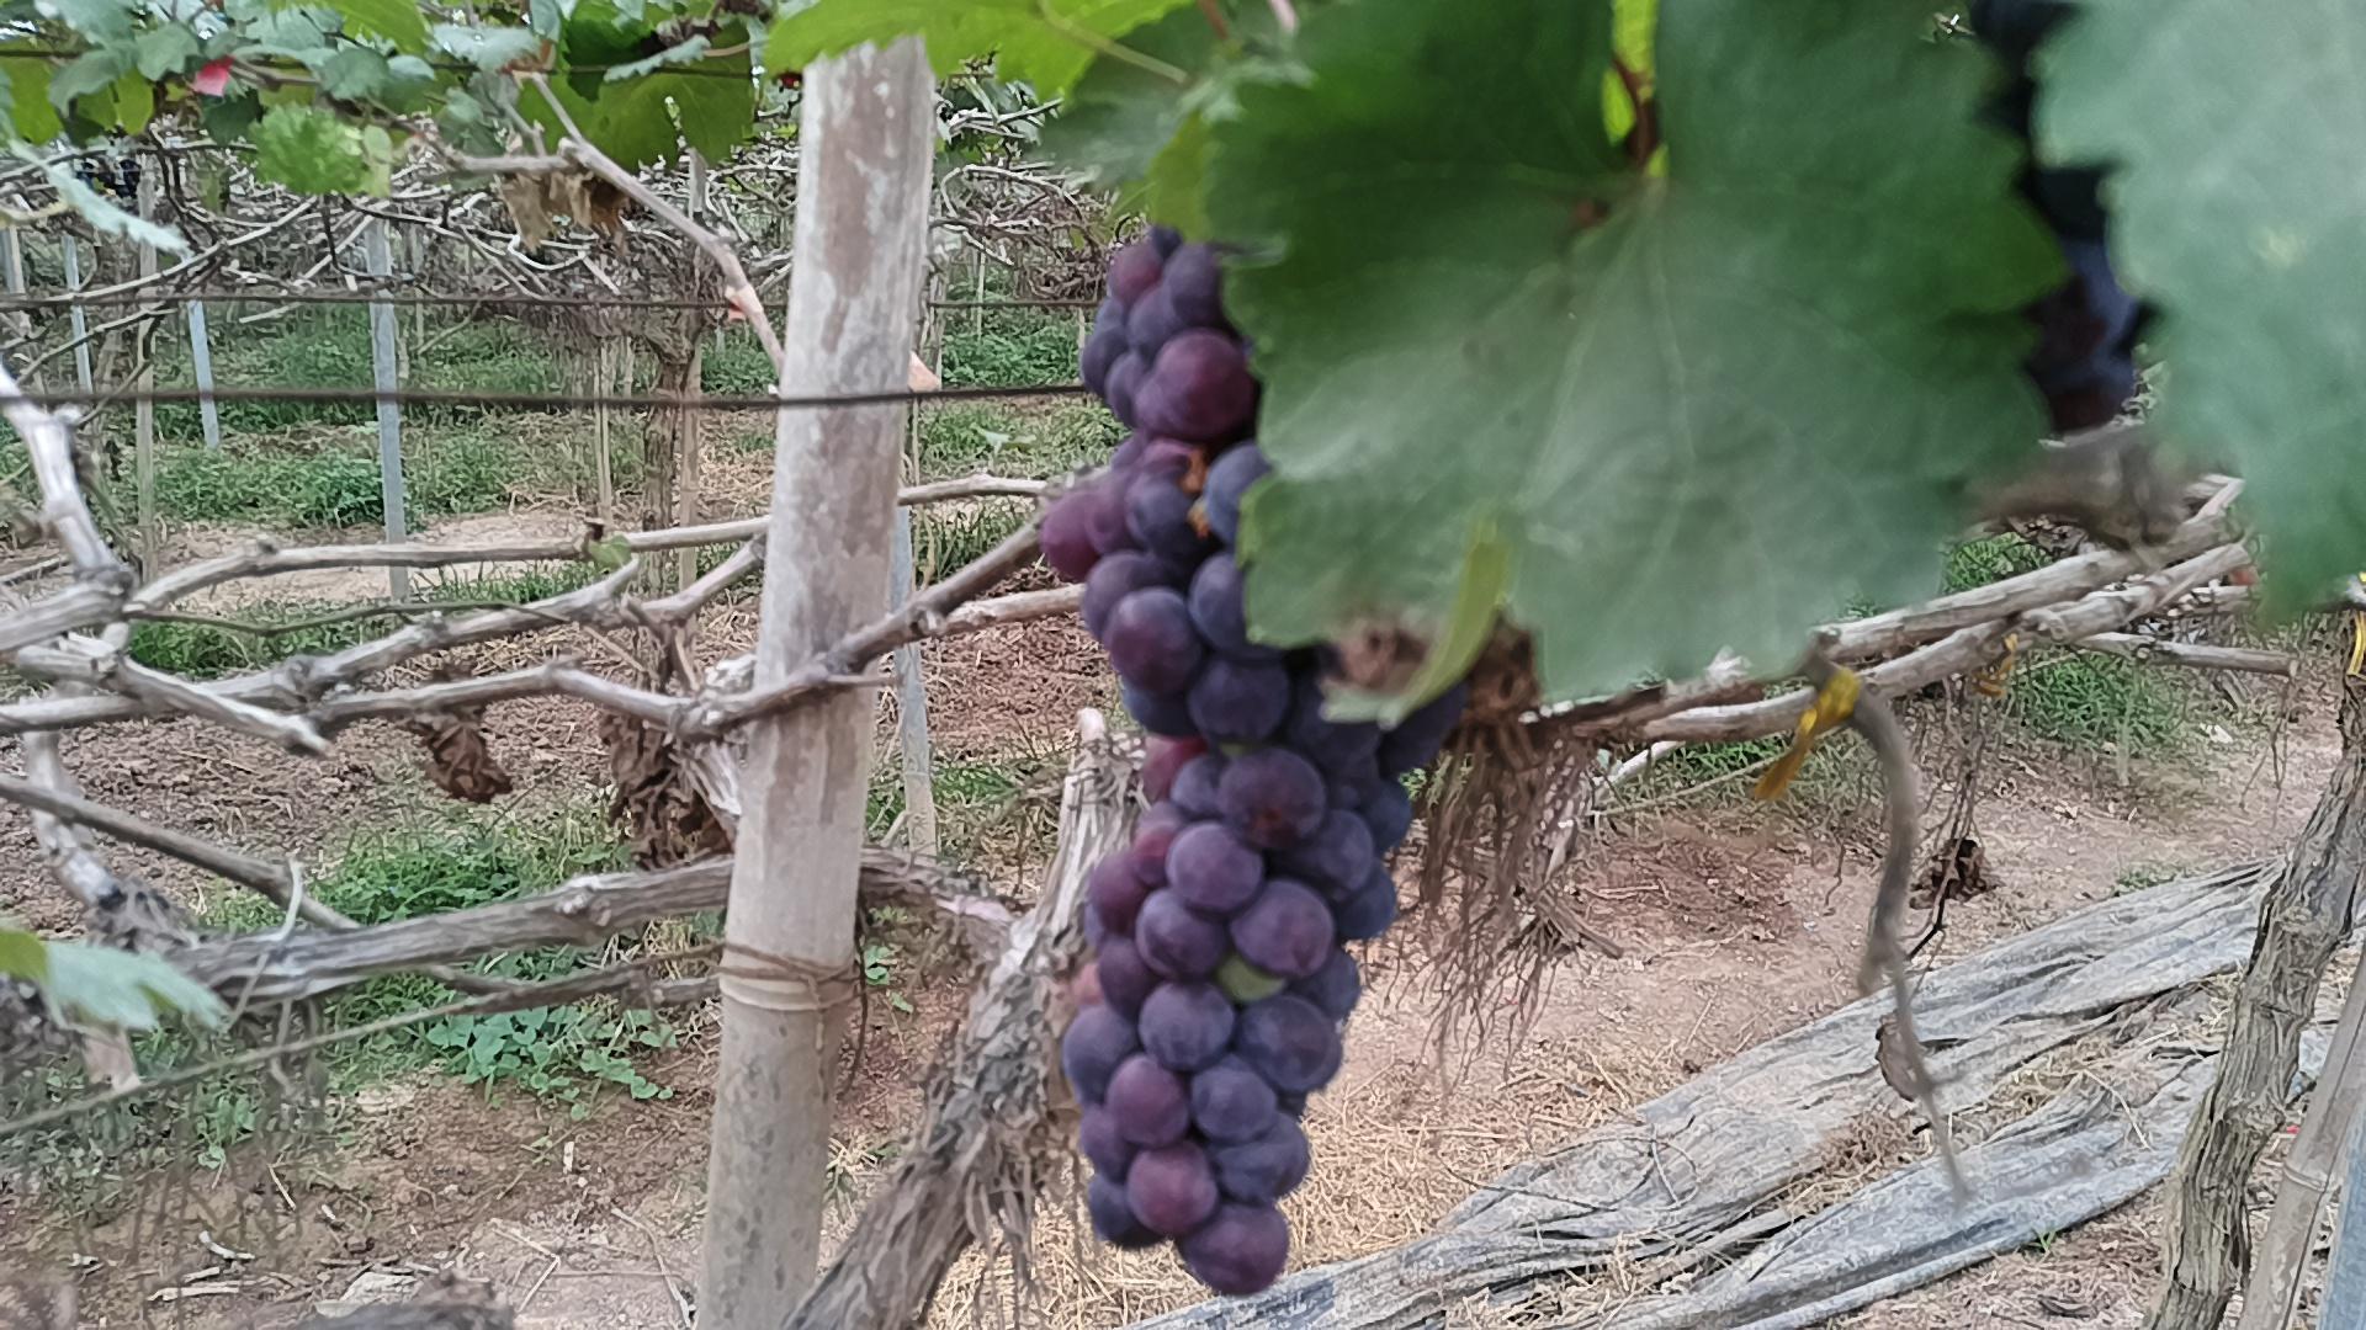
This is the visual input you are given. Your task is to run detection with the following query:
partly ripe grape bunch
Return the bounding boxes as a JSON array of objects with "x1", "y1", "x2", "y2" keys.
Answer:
[{"x1": 1039, "y1": 228, "x2": 1469, "y2": 1294}]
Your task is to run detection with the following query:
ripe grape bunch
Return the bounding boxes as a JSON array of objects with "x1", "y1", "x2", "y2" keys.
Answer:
[{"x1": 1969, "y1": 0, "x2": 2154, "y2": 433}]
